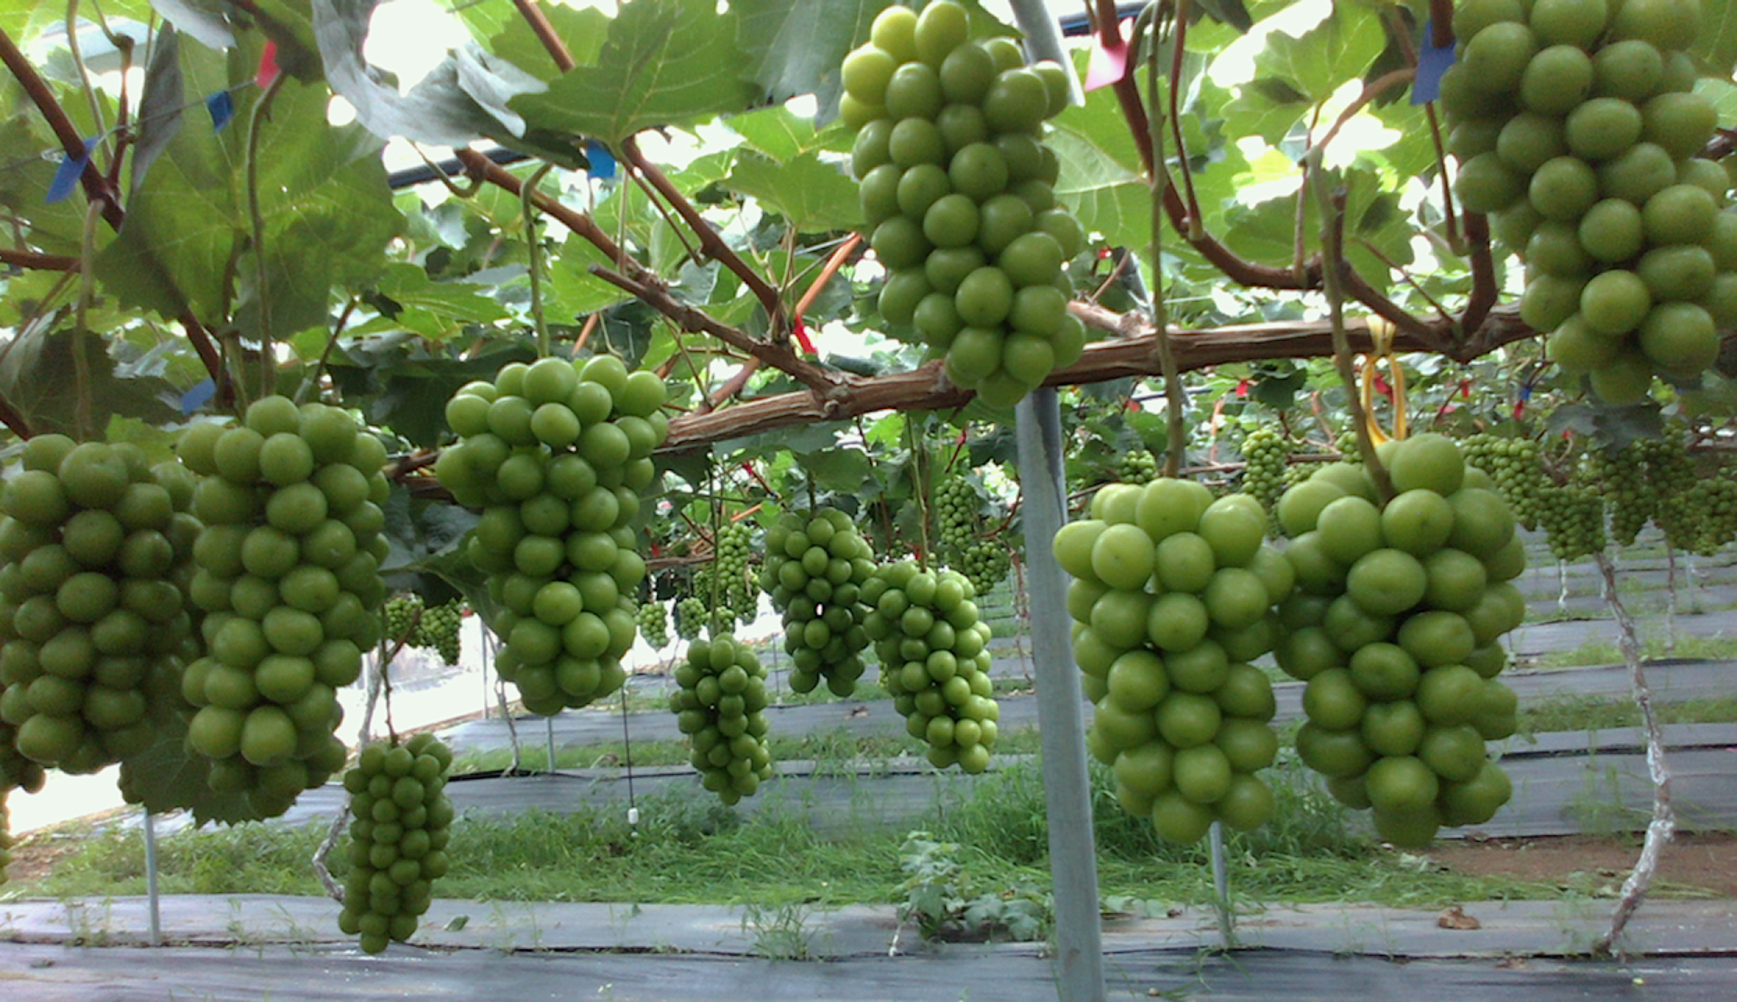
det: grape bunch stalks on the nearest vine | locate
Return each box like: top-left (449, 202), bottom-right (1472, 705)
top-left (522, 161), bottom-right (555, 356)
top-left (75, 195), bottom-right (104, 441)
top-left (1147, 1), bottom-right (1180, 475)
top-left (244, 67), bottom-right (287, 395)
top-left (1301, 65), bottom-right (1420, 498)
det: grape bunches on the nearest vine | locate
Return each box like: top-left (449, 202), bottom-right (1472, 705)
top-left (177, 394), bottom-right (390, 765)
top-left (839, 0), bottom-right (1087, 409)
top-left (1439, 1), bottom-right (1736, 404)
top-left (1, 434), bottom-right (205, 777)
top-left (1049, 475), bottom-right (1294, 846)
top-left (436, 355), bottom-right (668, 718)
top-left (1275, 434), bottom-right (1525, 845)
